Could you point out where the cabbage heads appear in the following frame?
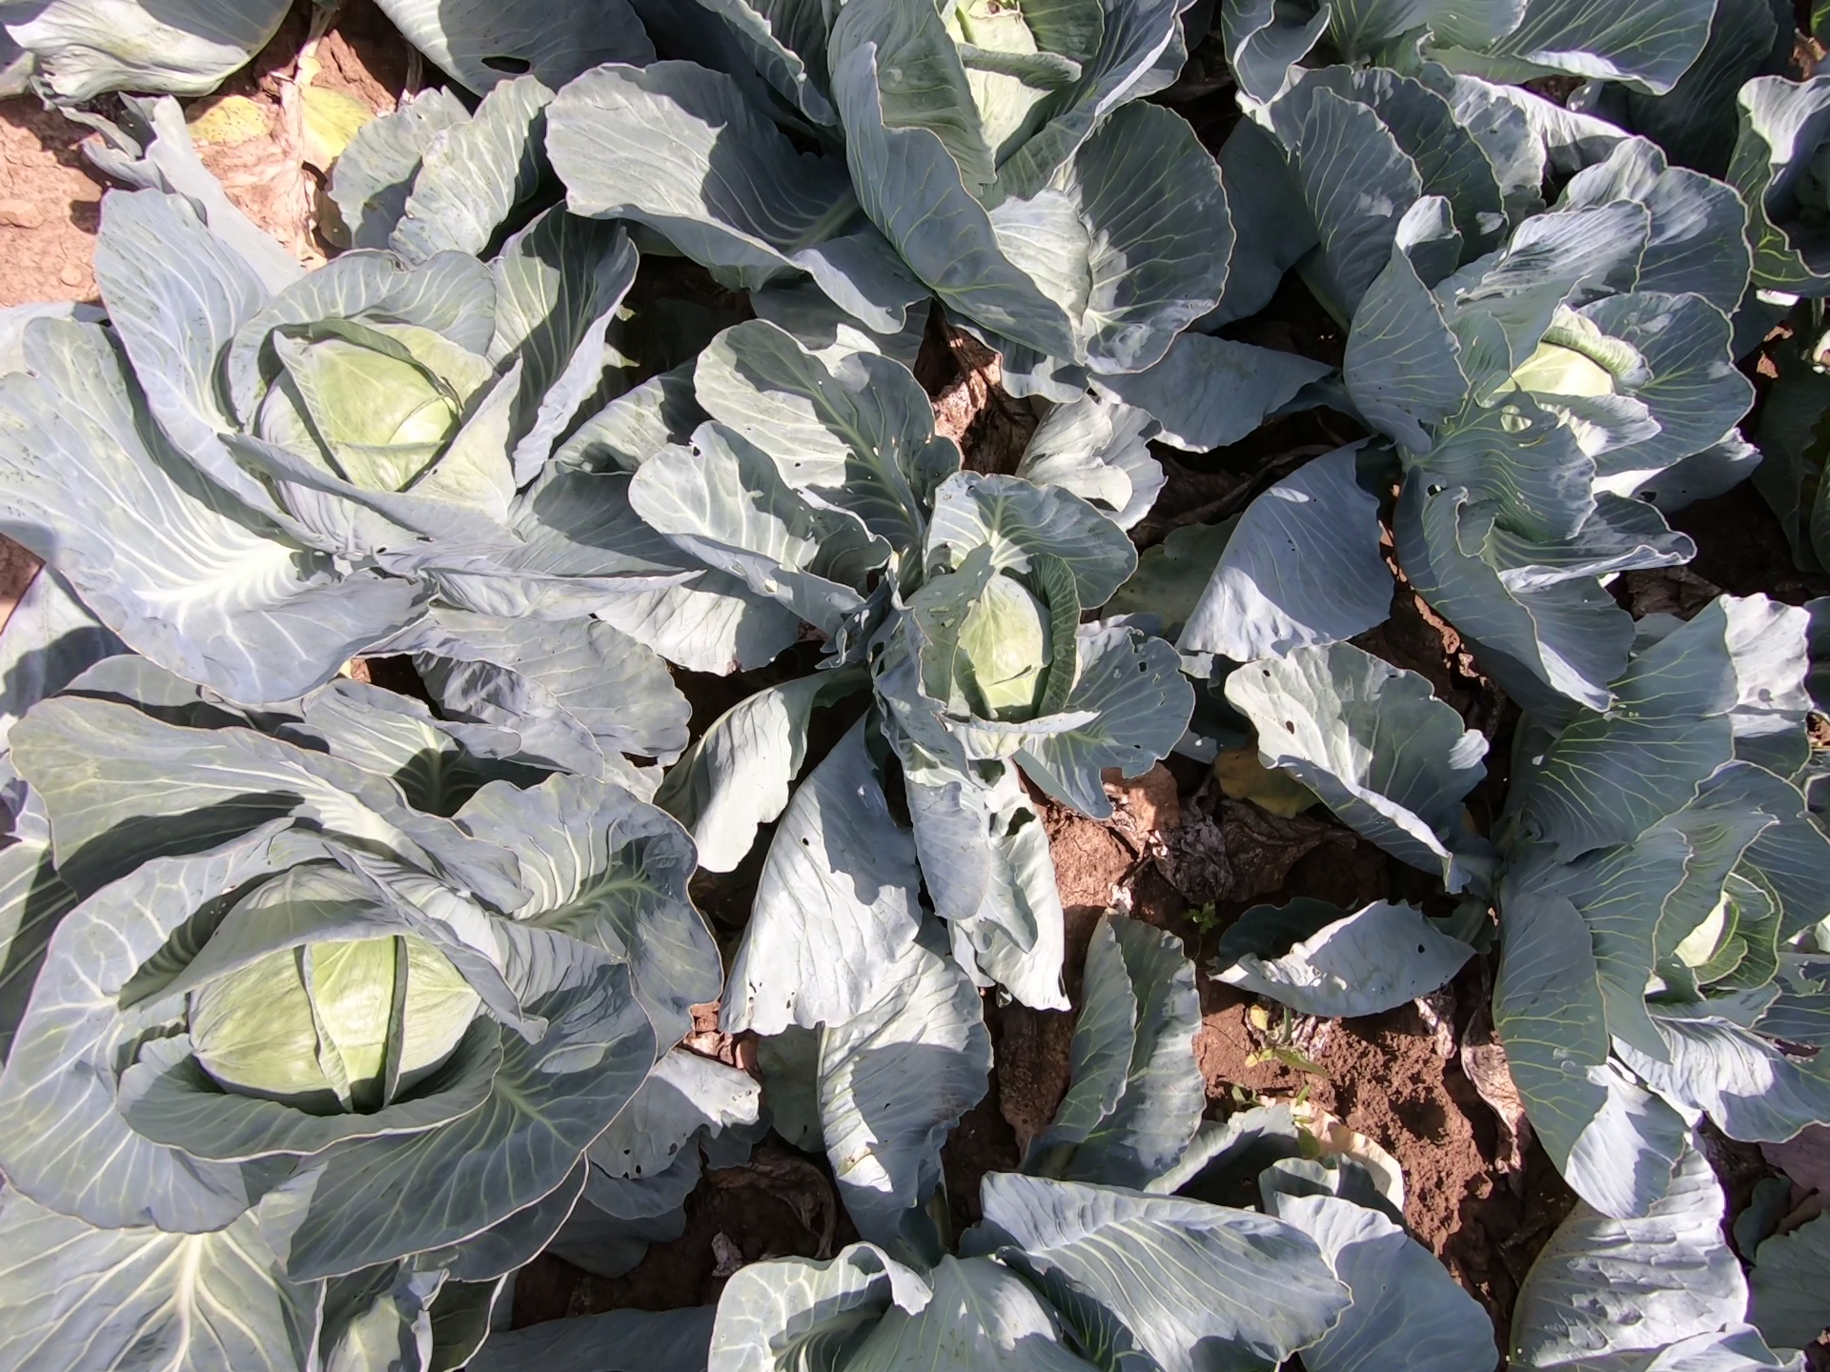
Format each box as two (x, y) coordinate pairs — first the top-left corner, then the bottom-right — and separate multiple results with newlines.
(884, 569), (1078, 752)
(1439, 299), (1618, 491)
(190, 869), (486, 1113)
(846, 1258), (1066, 1369)
(261, 325), (513, 550)
(1590, 841), (1738, 991)
(823, 1), (1055, 195)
